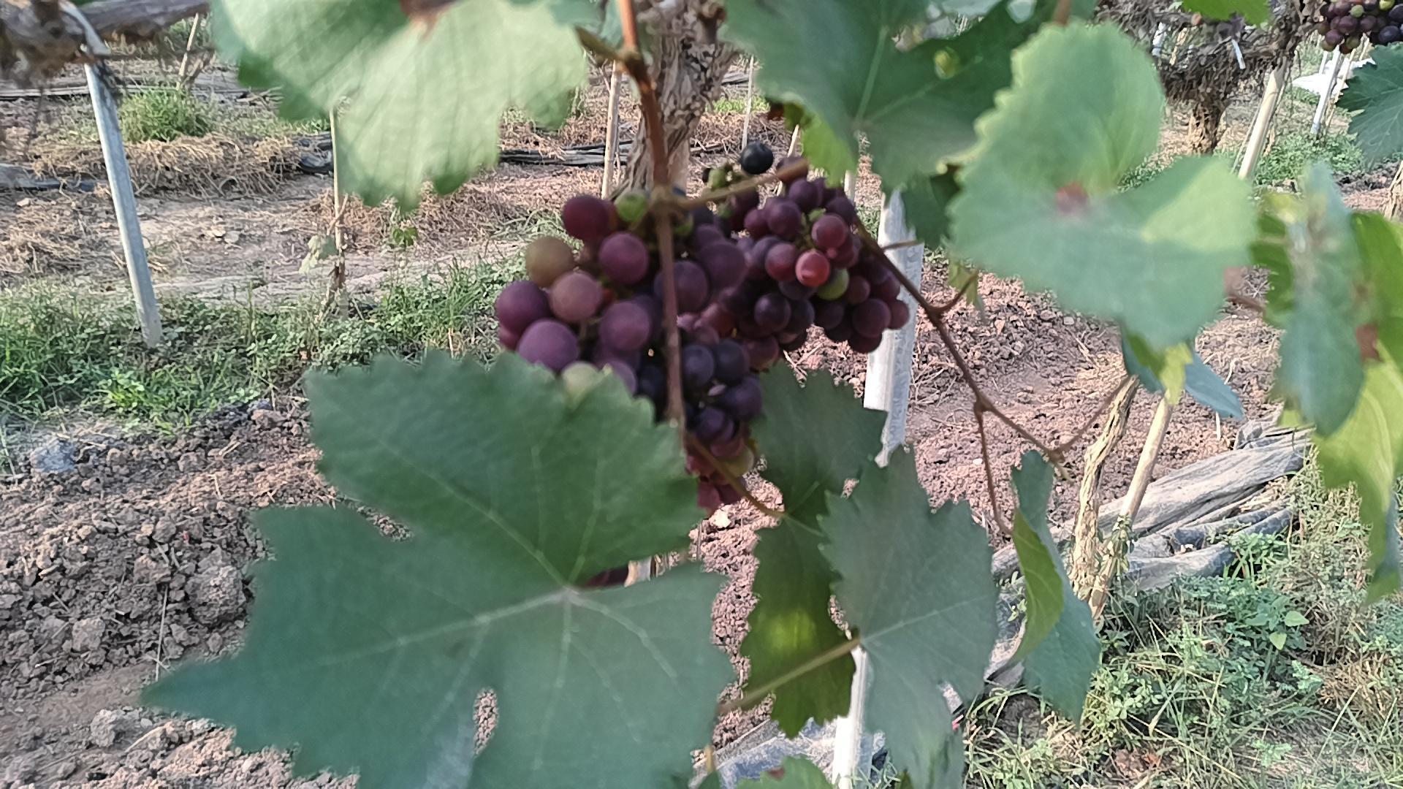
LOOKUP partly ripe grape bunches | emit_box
[1299,0,1402,54]
[495,141,910,517]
